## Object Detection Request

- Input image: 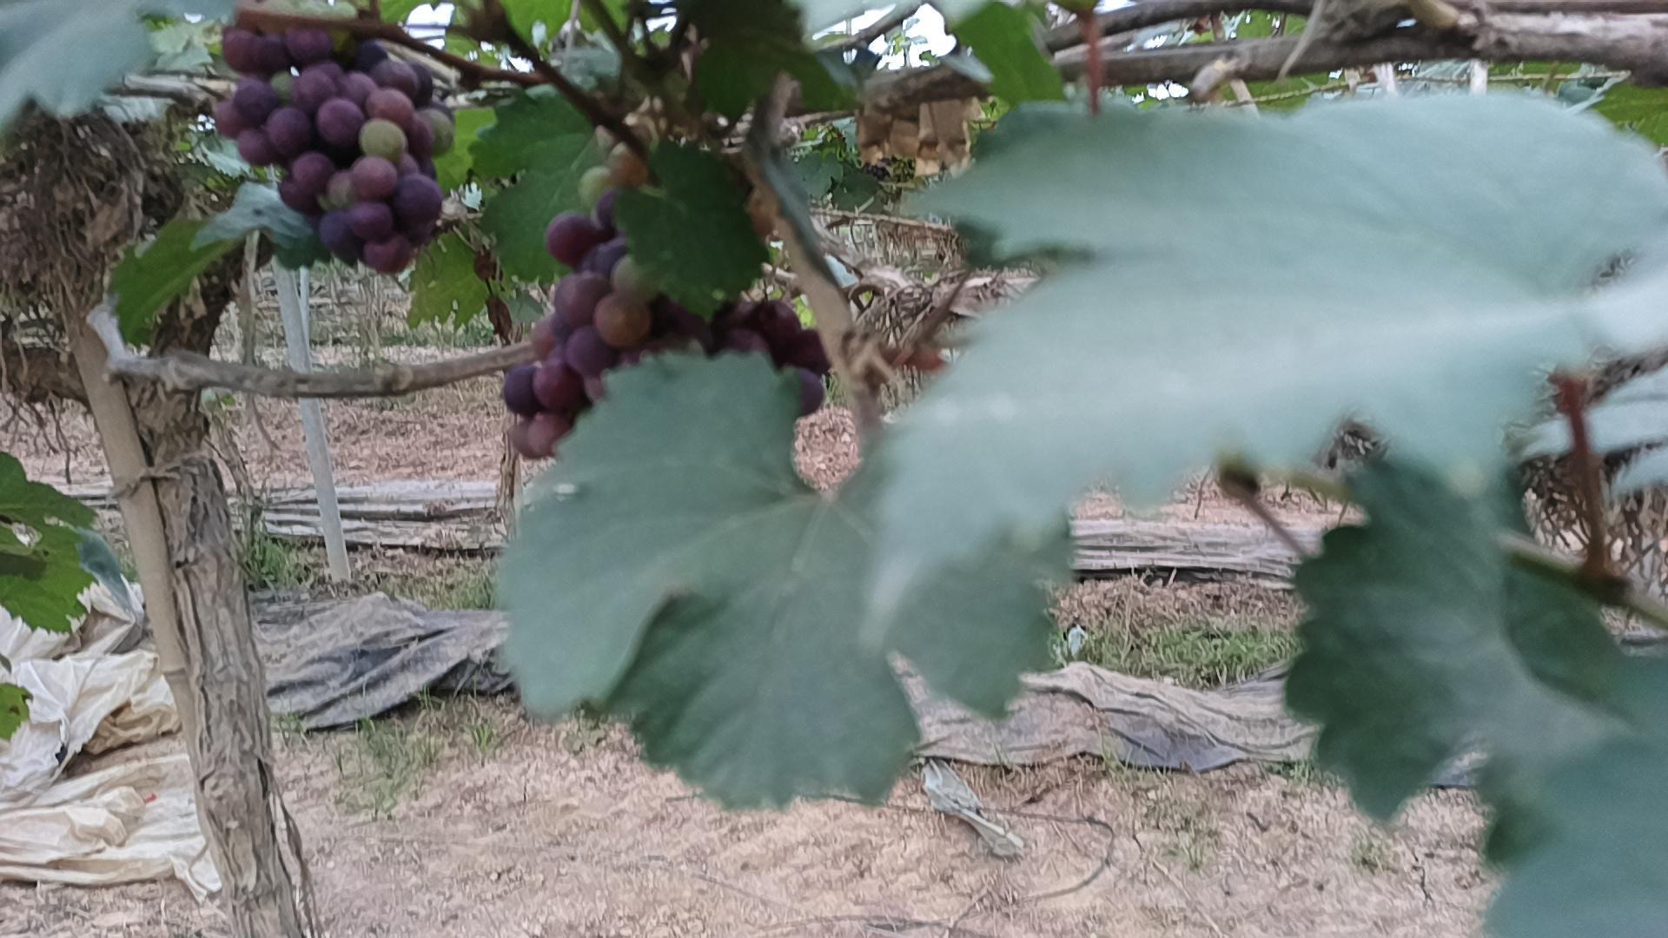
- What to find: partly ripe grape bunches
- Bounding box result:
[504,189,830,459]
[214,20,453,273]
